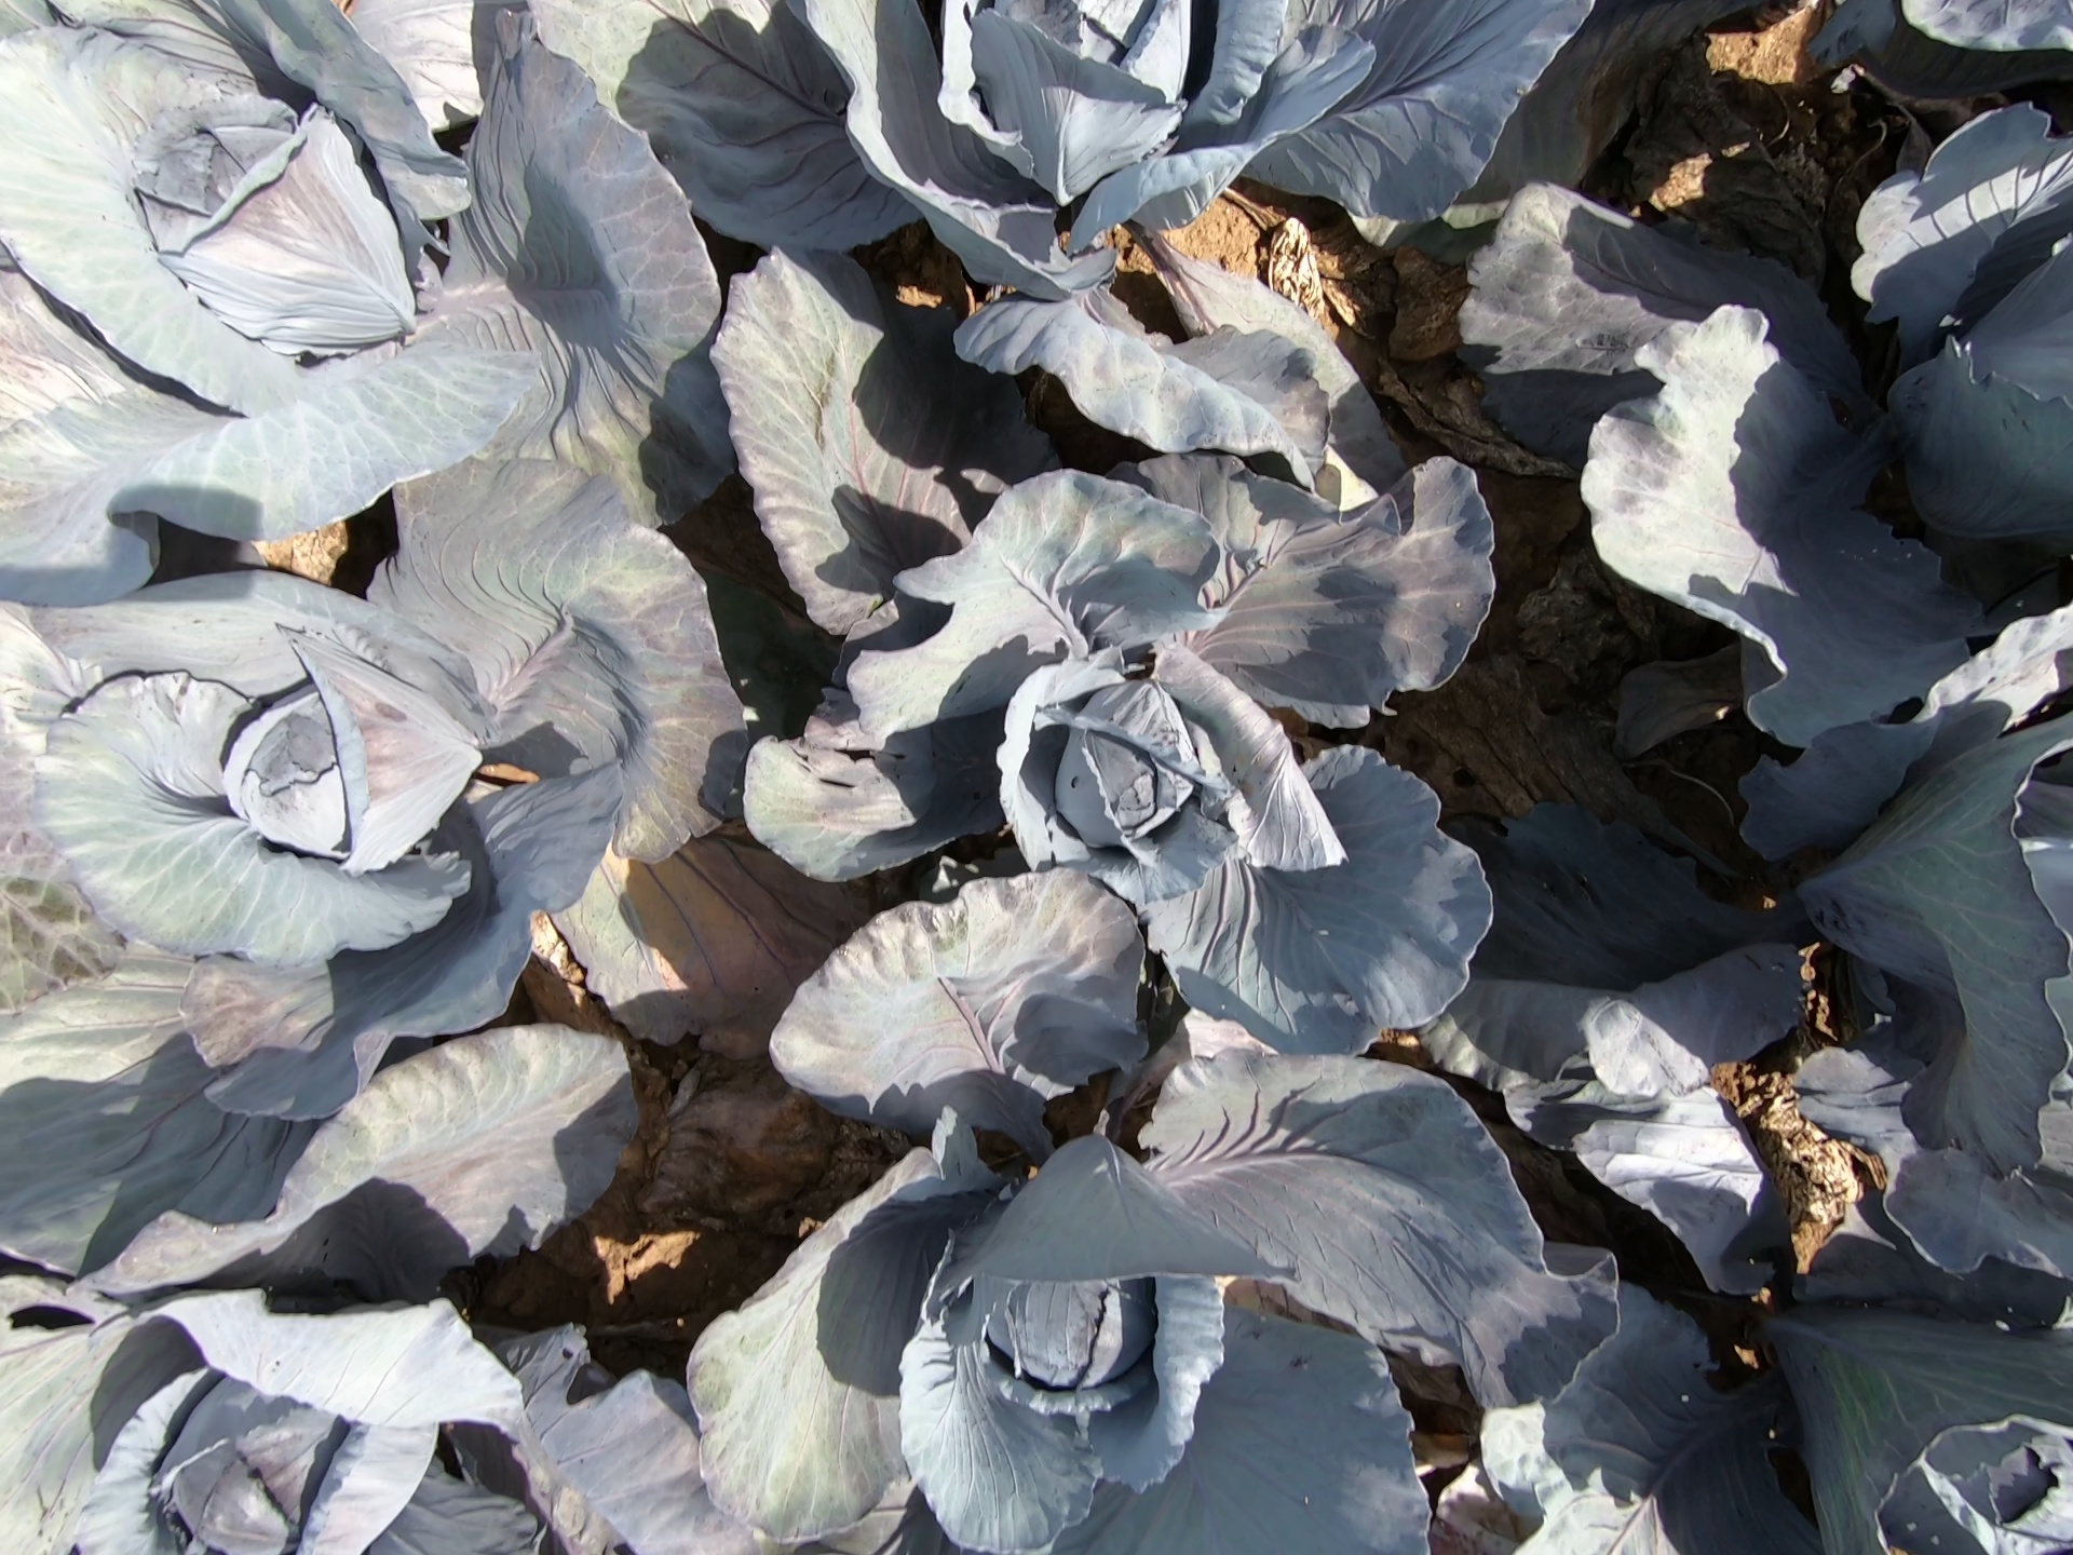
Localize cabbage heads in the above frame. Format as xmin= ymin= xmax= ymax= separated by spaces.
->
xmin=234 ymin=676 xmax=473 ymax=851
xmin=971 ymin=1205 xmax=1167 ymax=1396
xmin=1827 ymin=1347 xmax=2071 ymax=1552
xmin=990 ymin=3 xmax=1198 ymax=179
xmin=1054 ymin=684 xmax=1196 ymax=847
xmin=147 ymin=1333 xmax=433 ymax=1552
xmin=141 ymin=122 xmax=374 ymax=347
